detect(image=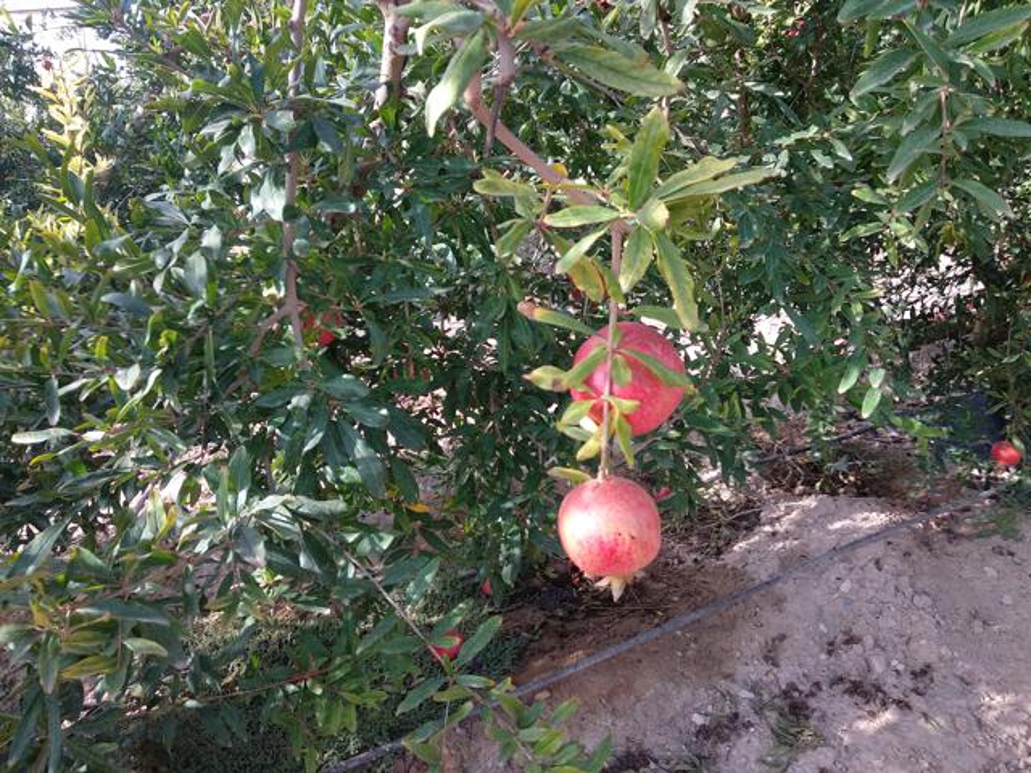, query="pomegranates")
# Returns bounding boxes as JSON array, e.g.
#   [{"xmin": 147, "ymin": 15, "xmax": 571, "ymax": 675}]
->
[
  {"xmin": 570, "ymin": 319, "xmax": 688, "ymax": 436},
  {"xmin": 991, "ymin": 440, "xmax": 1023, "ymax": 465},
  {"xmin": 304, "ymin": 312, "xmax": 340, "ymax": 346},
  {"xmin": 554, "ymin": 475, "xmax": 662, "ymax": 602},
  {"xmin": 432, "ymin": 628, "xmax": 466, "ymax": 659}
]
